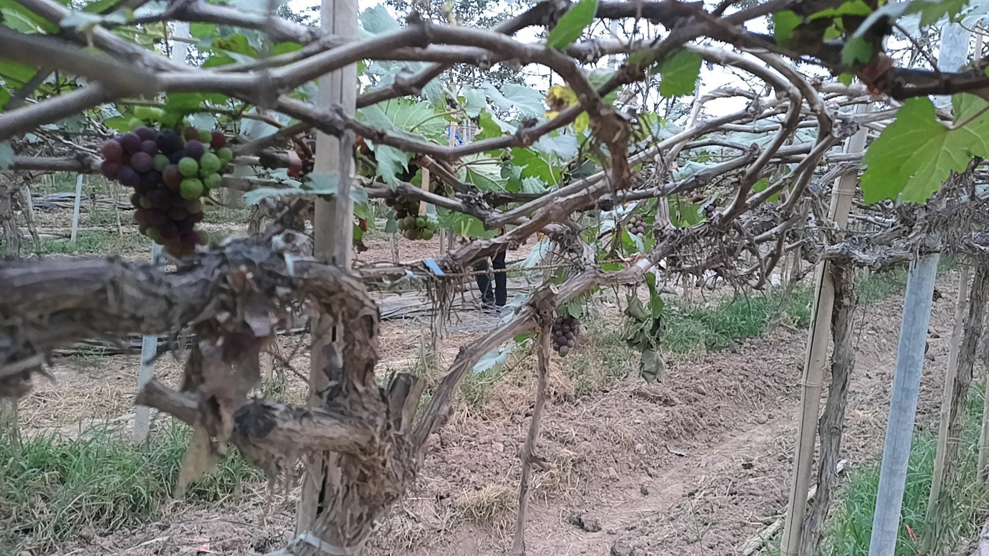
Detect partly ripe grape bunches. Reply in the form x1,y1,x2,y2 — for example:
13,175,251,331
551,314,580,357
626,214,648,239
100,105,232,258
385,193,437,240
